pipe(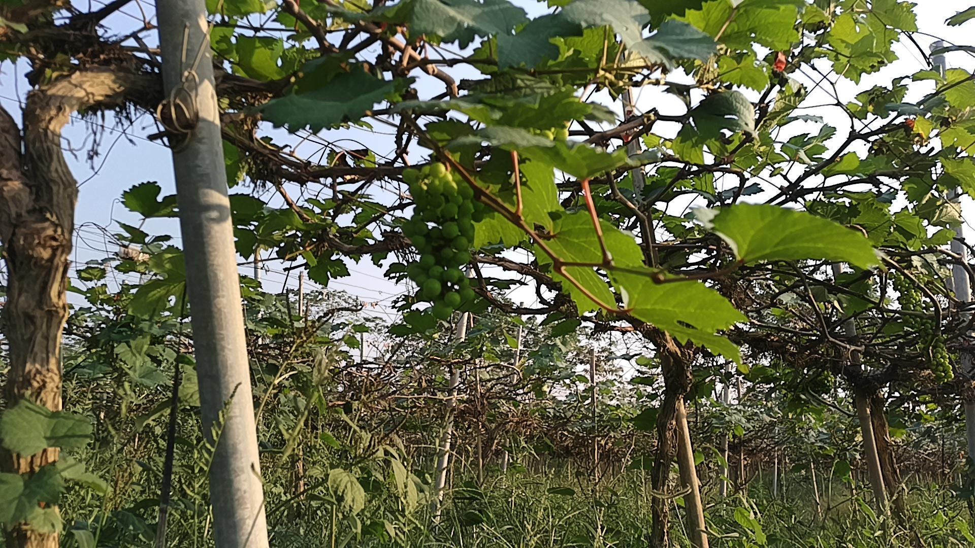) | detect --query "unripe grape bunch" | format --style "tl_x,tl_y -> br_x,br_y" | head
402,161 -> 486,319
